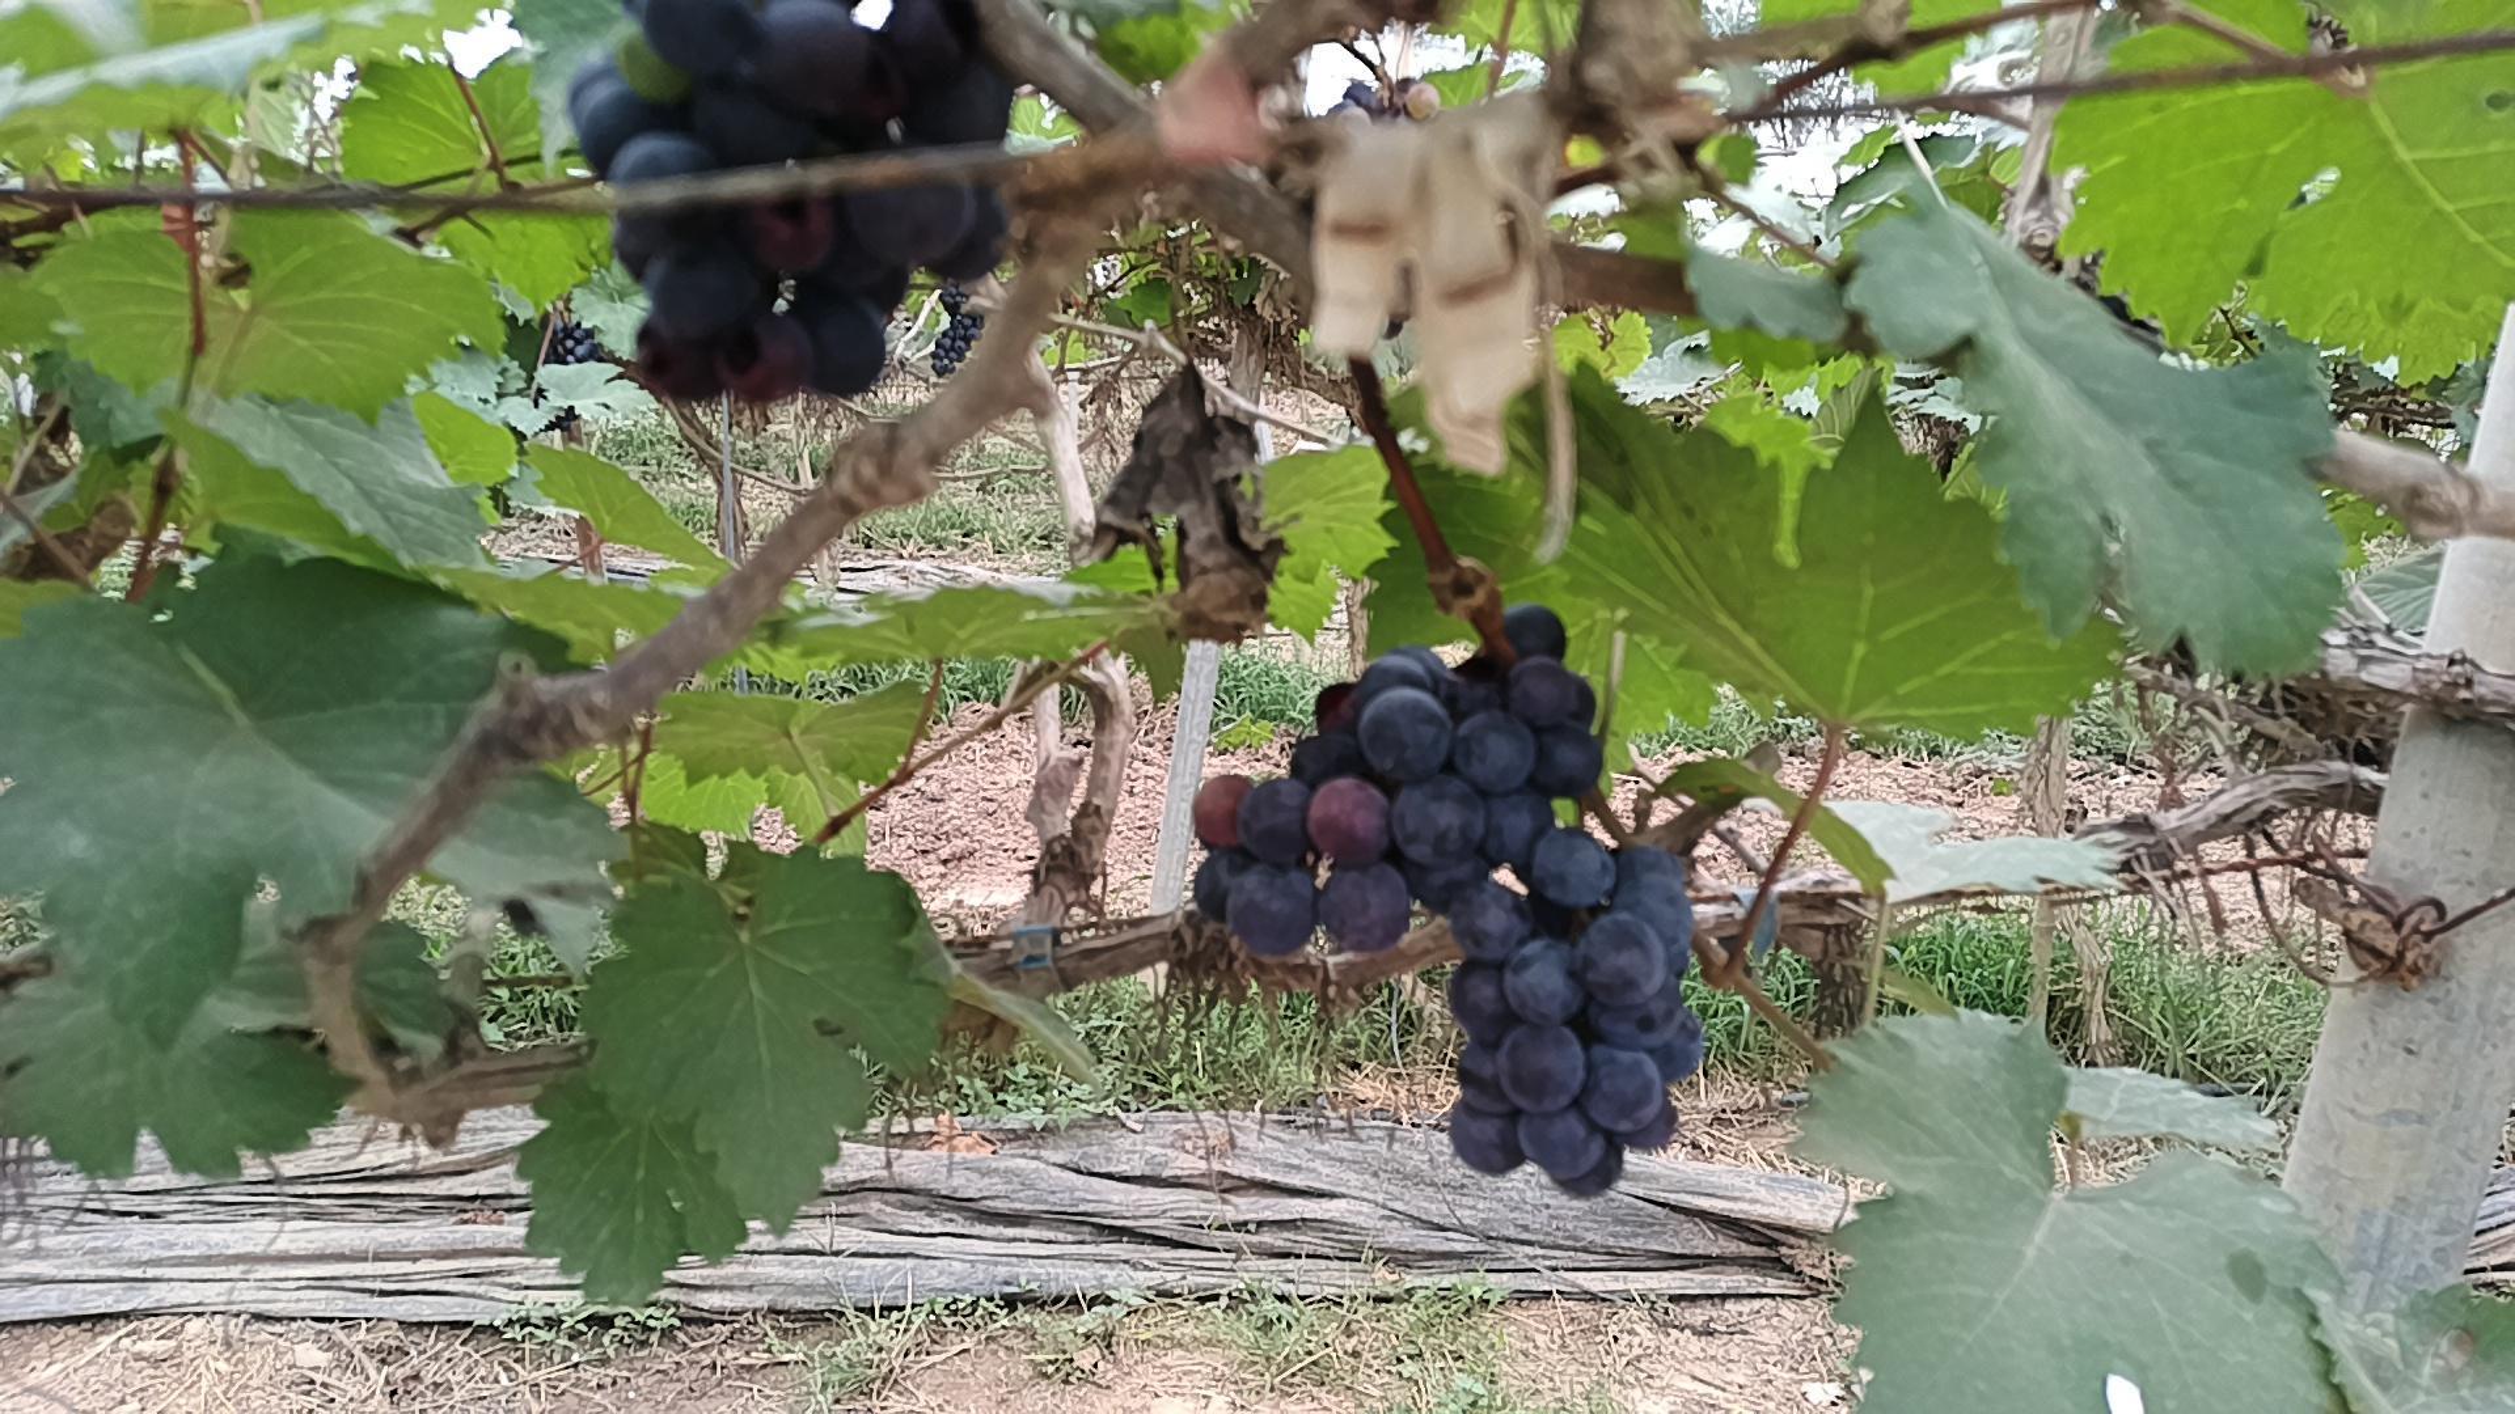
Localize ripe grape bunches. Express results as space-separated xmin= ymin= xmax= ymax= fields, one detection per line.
xmin=538 ymin=319 xmax=609 ymax=364
xmin=545 ymin=406 xmax=586 ymax=448
xmin=1196 ymin=605 xmax=1703 ymax=1195
xmin=562 ymin=0 xmax=1019 ymax=402
xmin=927 ymin=285 xmax=986 ymax=380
